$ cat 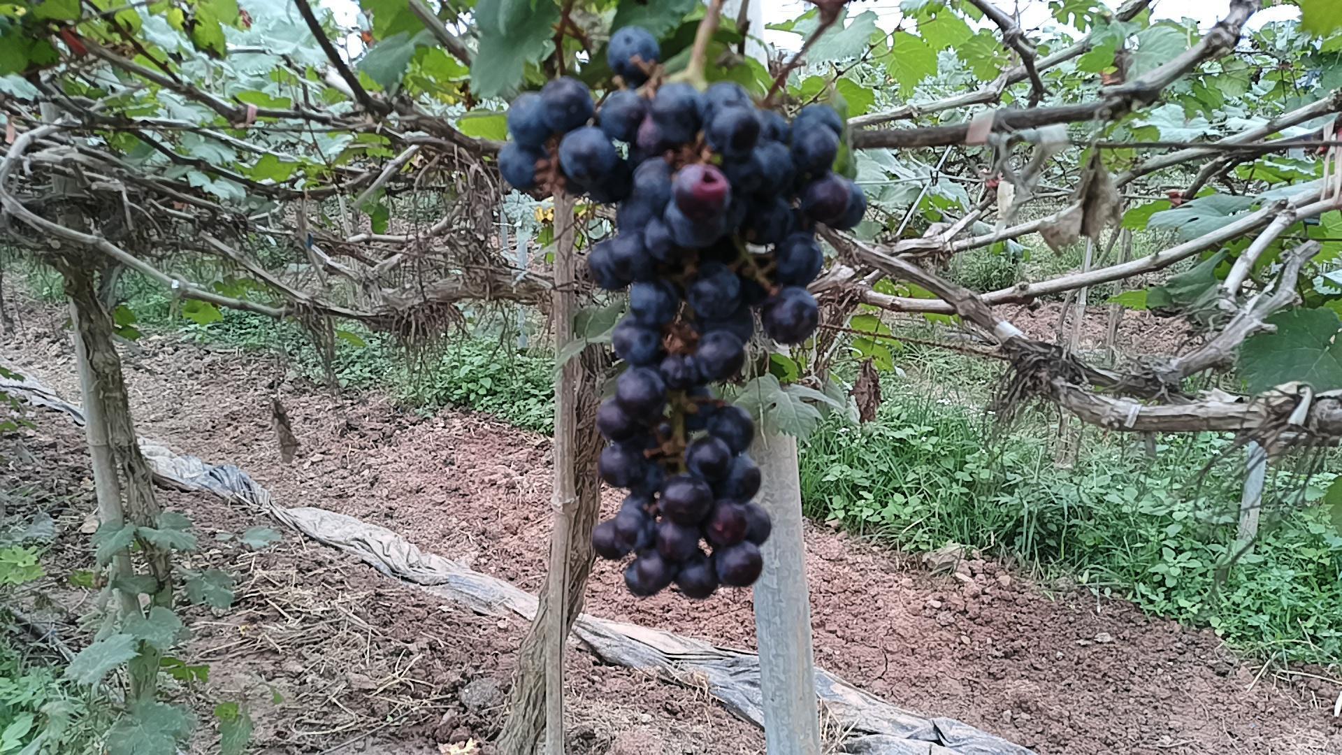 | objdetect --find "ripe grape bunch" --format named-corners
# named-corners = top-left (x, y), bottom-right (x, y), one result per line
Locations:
top-left (500, 27), bottom-right (864, 598)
